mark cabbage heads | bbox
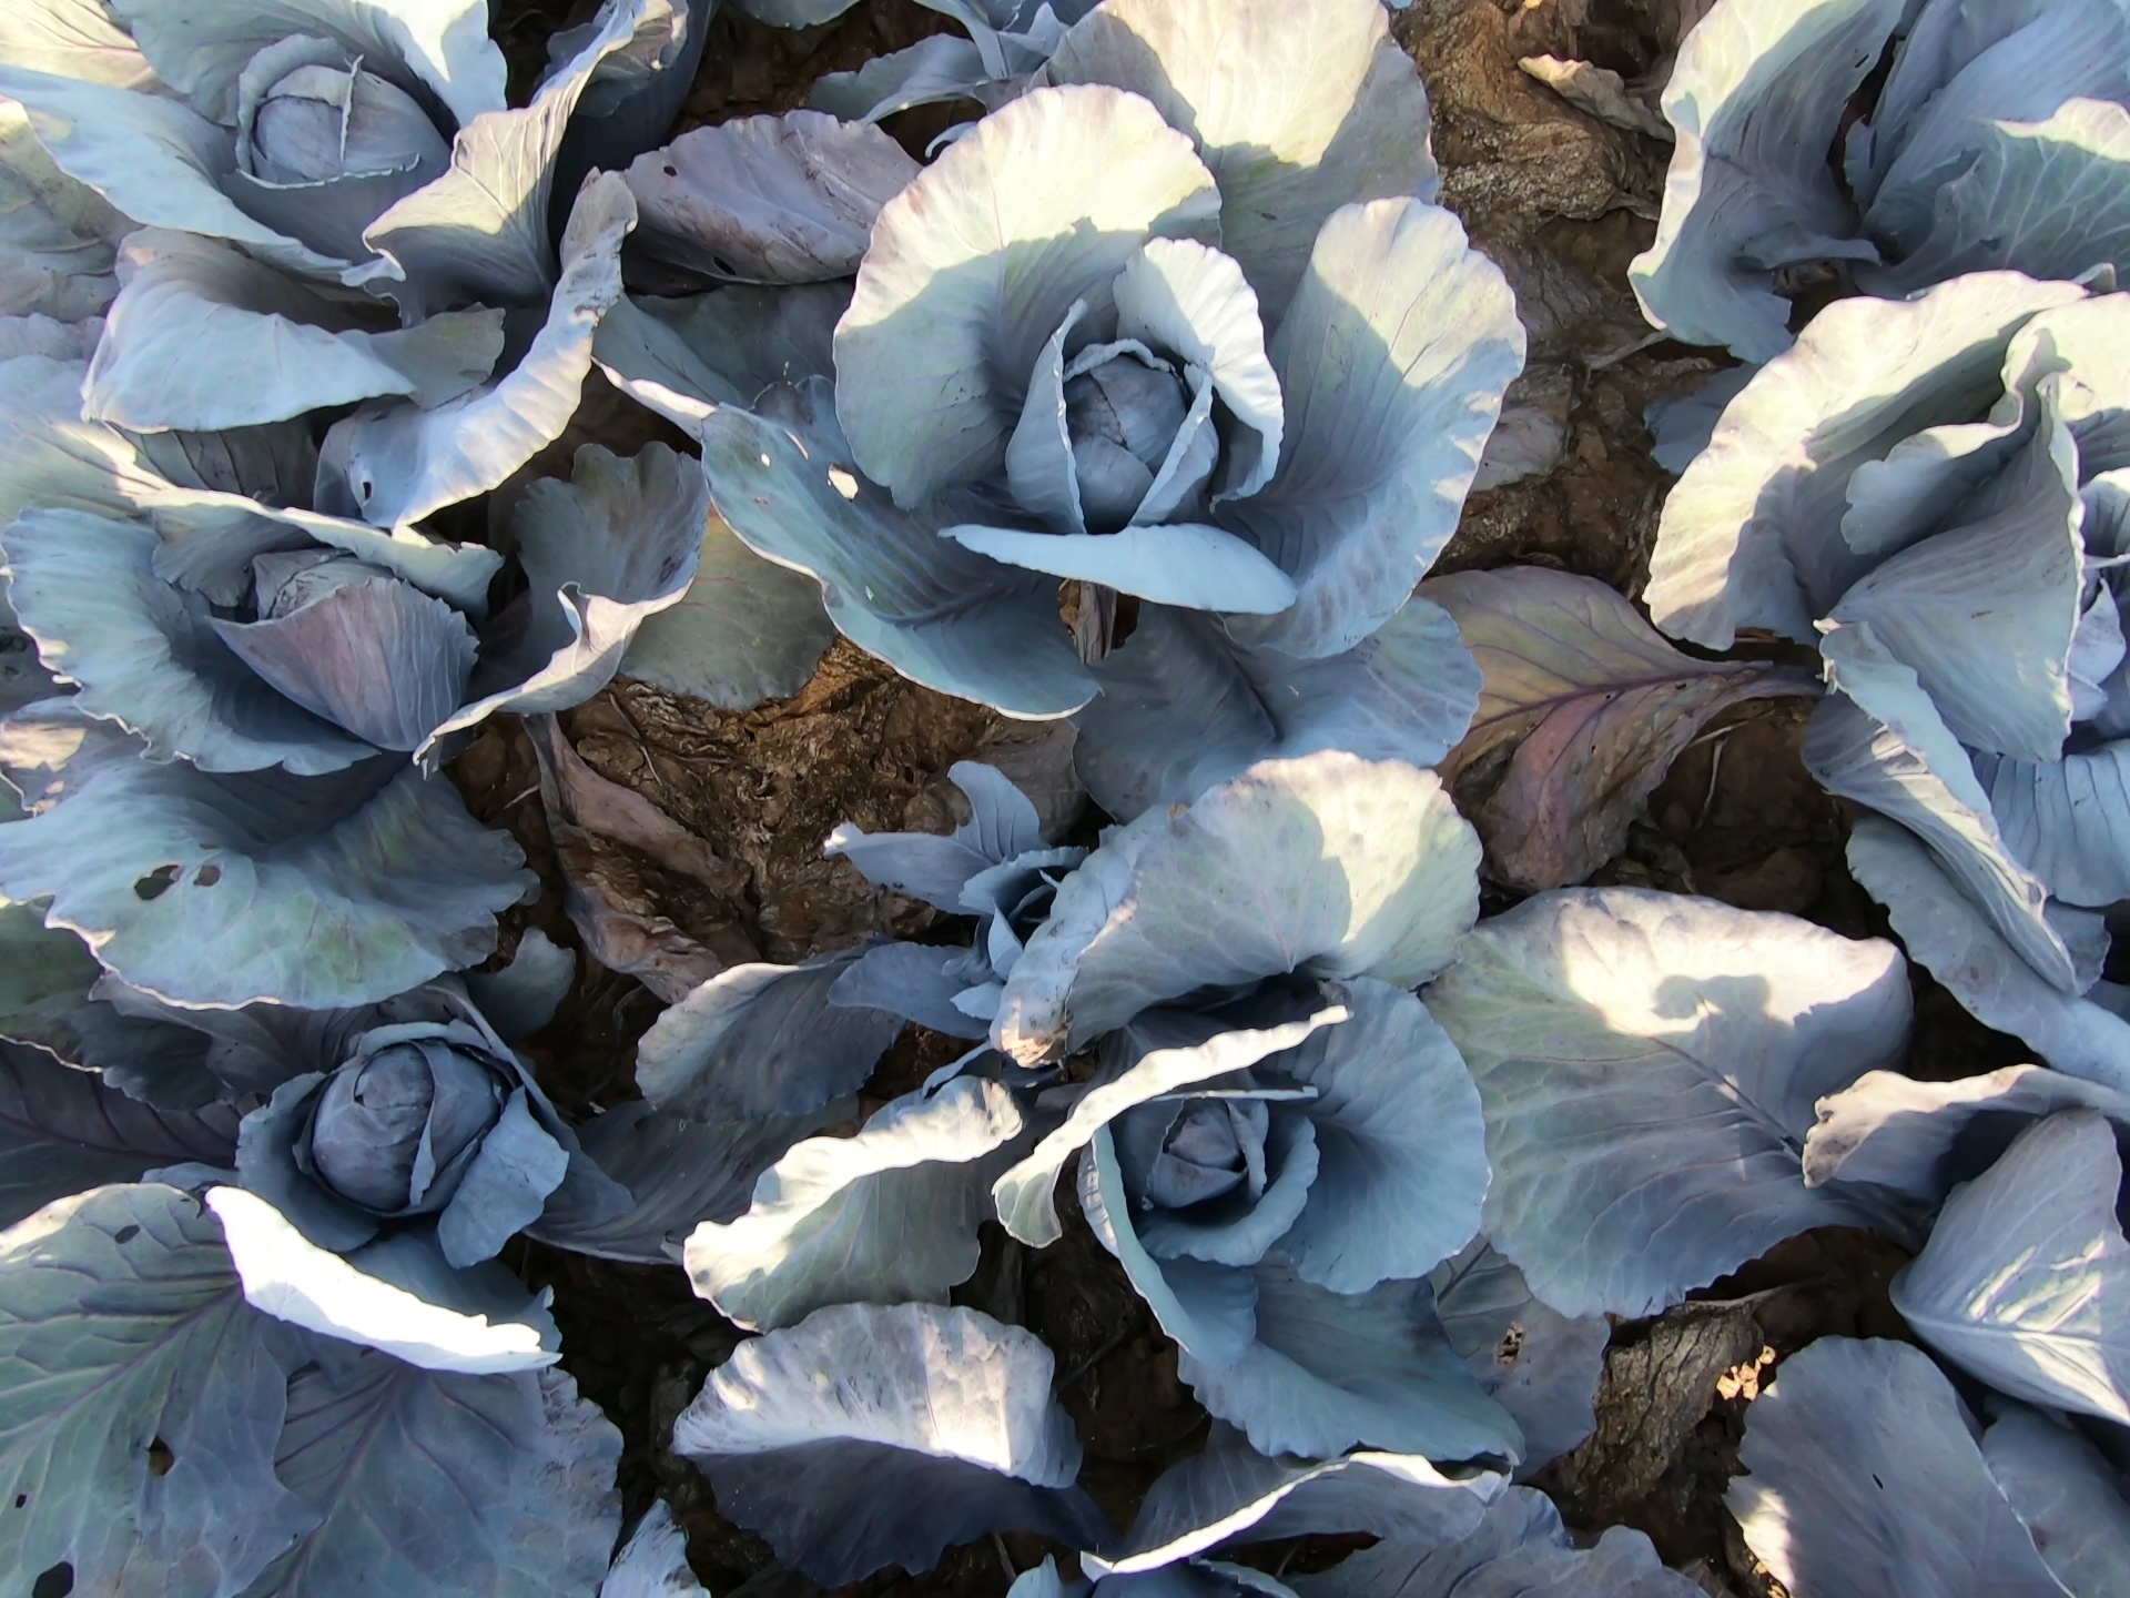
[1042,348,1201,509]
[1118,1053,1264,1196]
[268,550,442,717]
[1931,539,2119,716]
[251,67,448,256]
[306,1039,493,1208]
